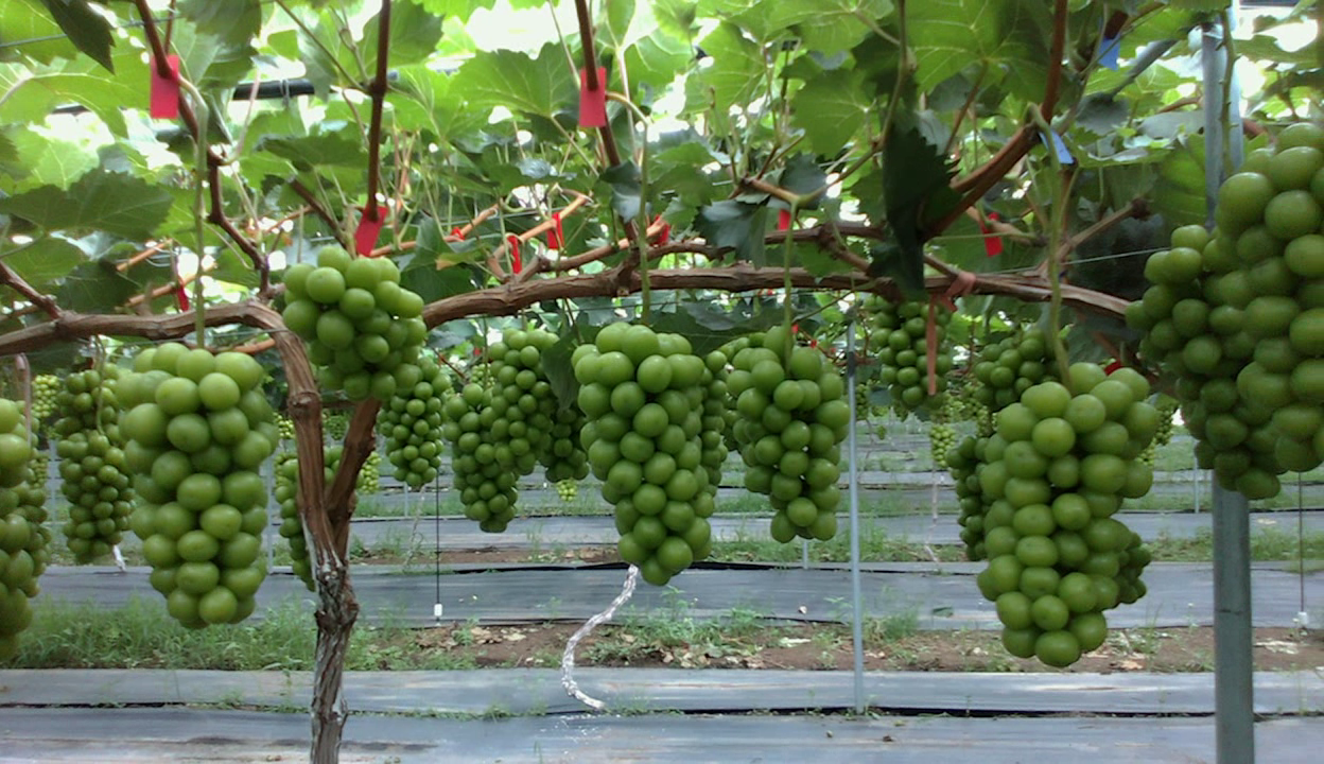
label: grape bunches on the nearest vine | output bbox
[977,363,1160,667]
[571,322,715,587]
[283,247,426,402]
[1125,225,1288,500]
[725,328,851,542]
[115,342,280,630]
[1203,123,1323,472]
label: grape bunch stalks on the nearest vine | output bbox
[608,90,651,327]
[178,71,211,347]
[345,203,366,260]
[753,178,797,378]
[1029,105,1073,390]
[1218,10,1236,179]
